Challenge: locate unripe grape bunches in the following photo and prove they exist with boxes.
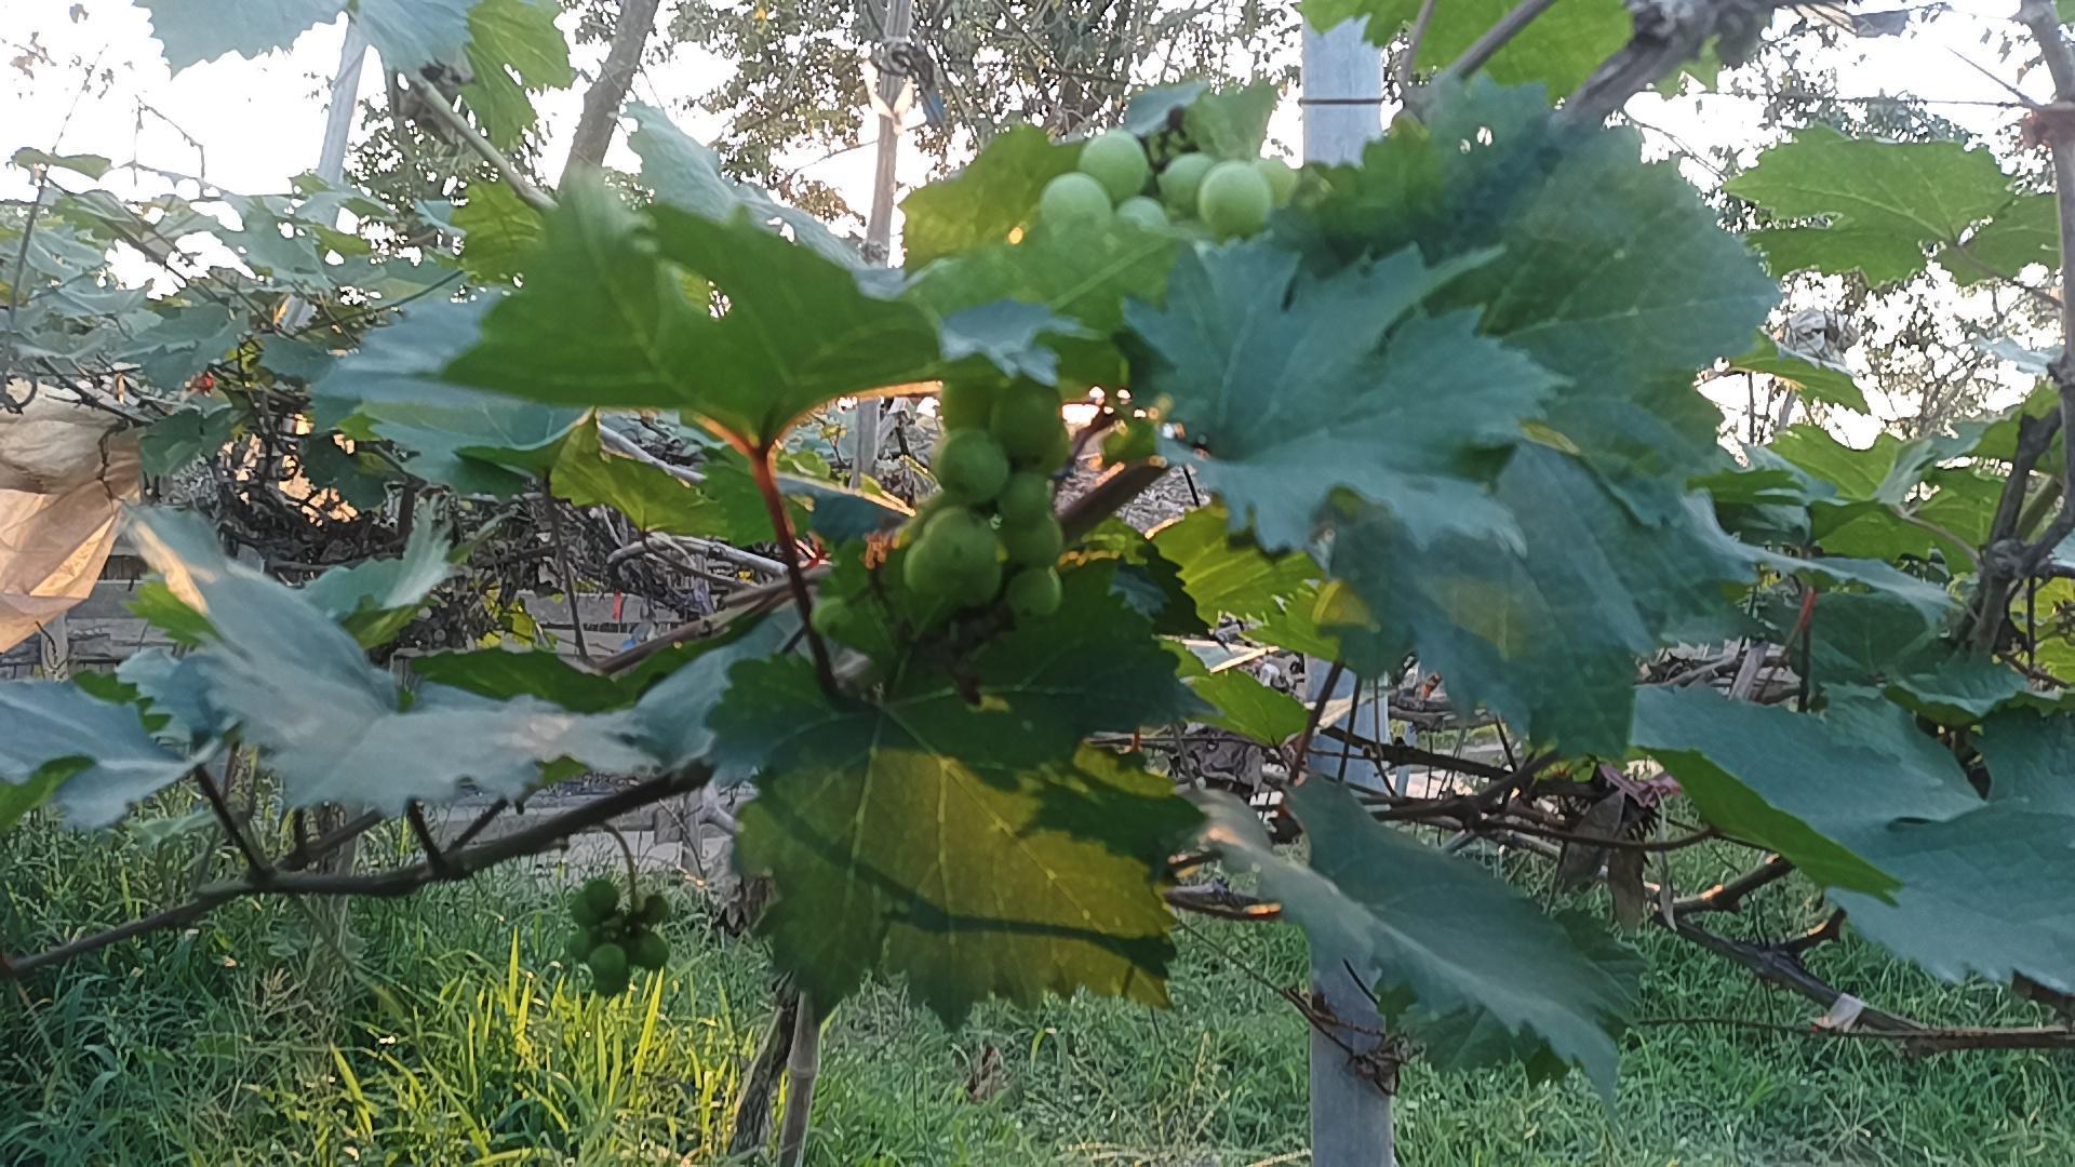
[563,878,672,995]
[903,130,1295,617]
